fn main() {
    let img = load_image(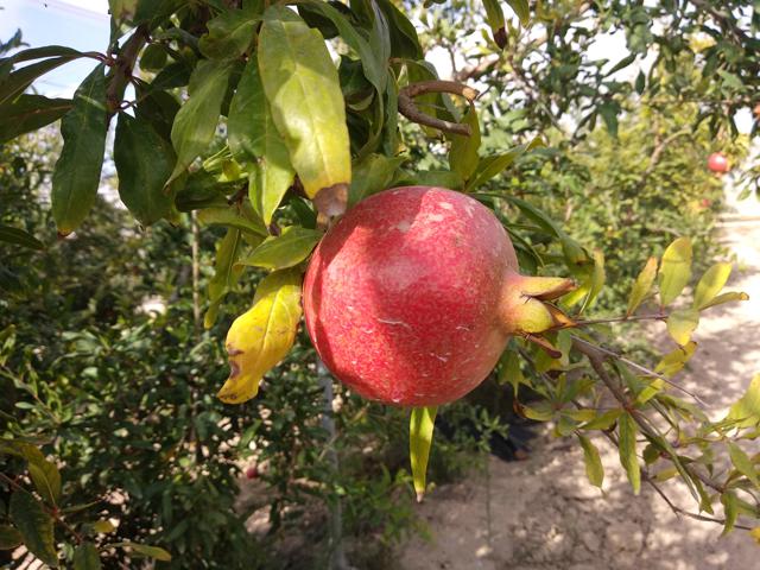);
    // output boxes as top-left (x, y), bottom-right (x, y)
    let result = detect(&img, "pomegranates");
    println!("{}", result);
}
top-left (302, 186), bottom-right (578, 410)
top-left (708, 152), bottom-right (729, 178)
